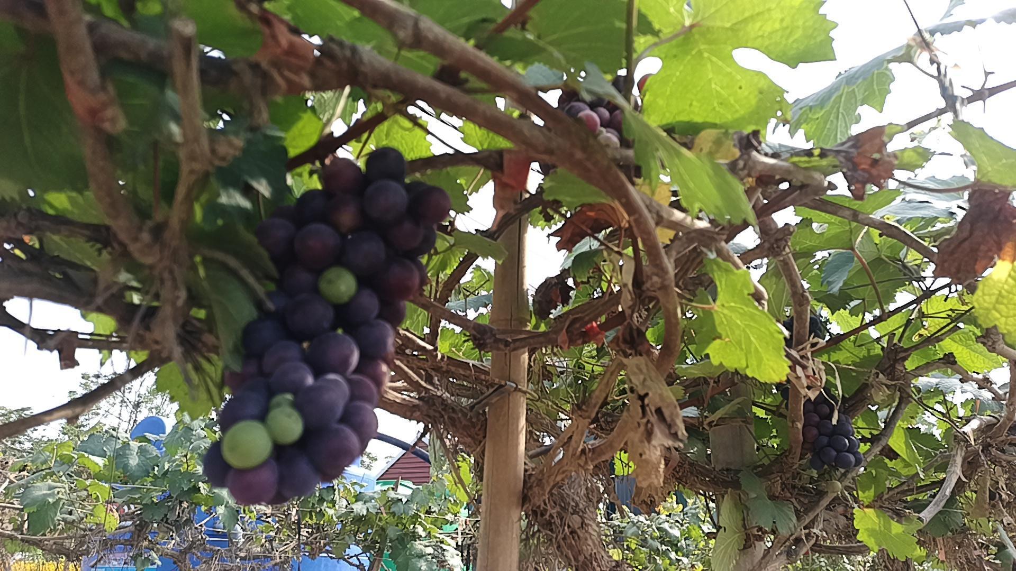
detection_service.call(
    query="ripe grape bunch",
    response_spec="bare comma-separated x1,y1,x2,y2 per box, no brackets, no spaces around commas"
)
801,388,865,471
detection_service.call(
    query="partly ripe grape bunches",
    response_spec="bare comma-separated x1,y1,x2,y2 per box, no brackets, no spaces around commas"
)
557,91,633,149
204,148,450,503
